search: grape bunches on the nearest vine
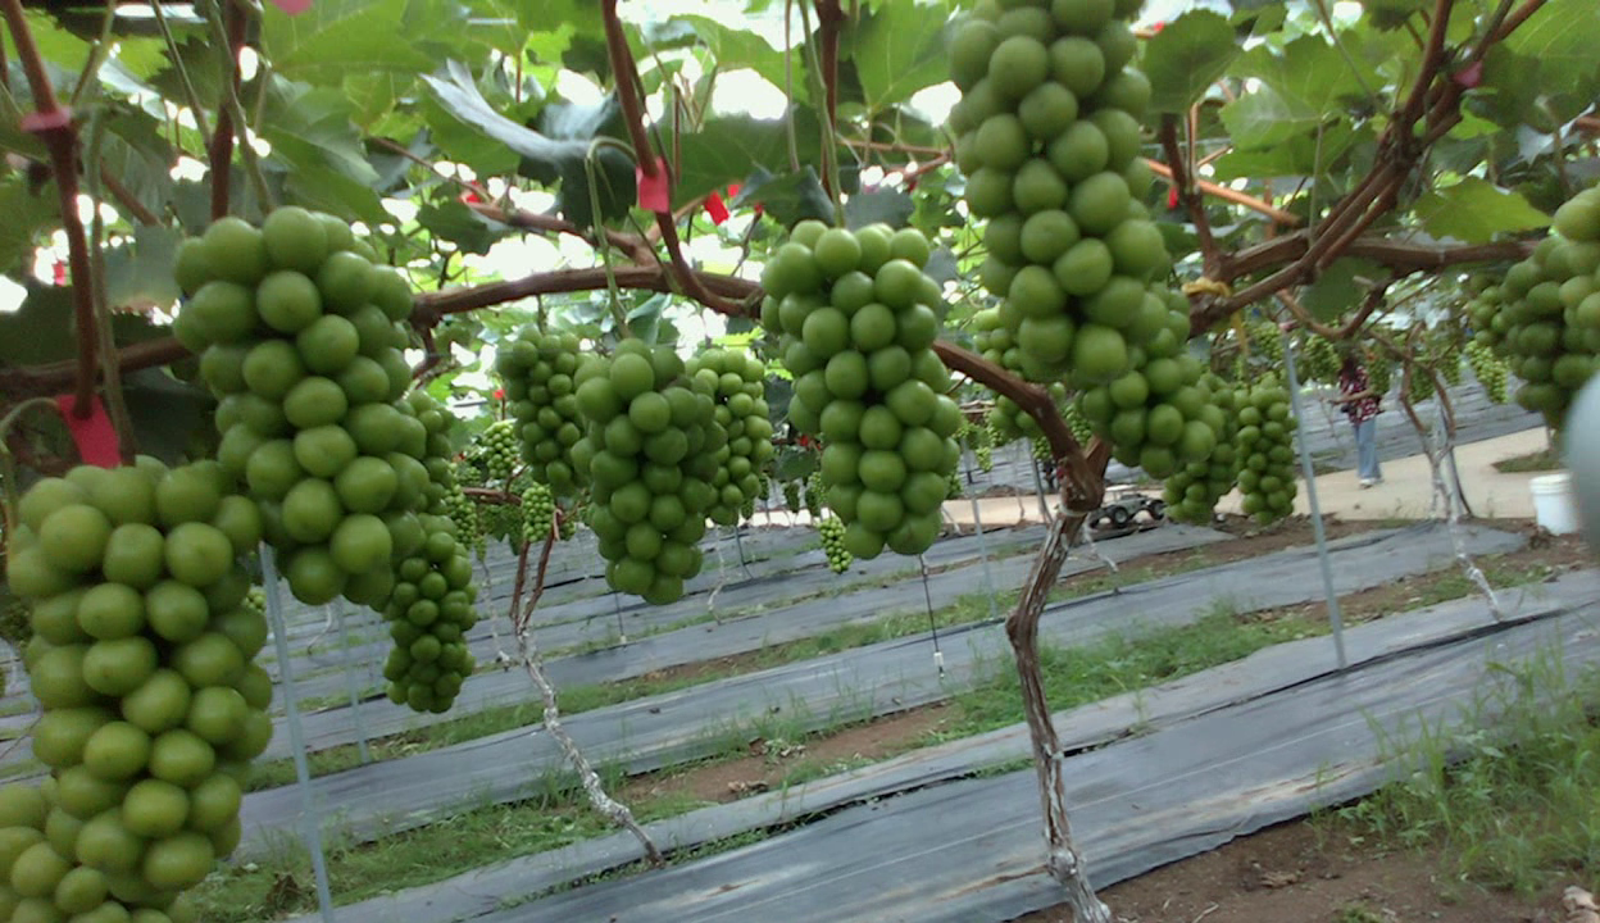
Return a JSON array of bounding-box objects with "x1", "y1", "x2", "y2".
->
[
  {"x1": 1500, "y1": 235, "x2": 1597, "y2": 410},
  {"x1": 759, "y1": 220, "x2": 962, "y2": 561},
  {"x1": 1, "y1": 779, "x2": 199, "y2": 922},
  {"x1": 169, "y1": 208, "x2": 428, "y2": 606},
  {"x1": 947, "y1": 0, "x2": 1172, "y2": 385},
  {"x1": 1553, "y1": 183, "x2": 1599, "y2": 332},
  {"x1": 1072, "y1": 290, "x2": 1223, "y2": 479},
  {"x1": 368, "y1": 514, "x2": 476, "y2": 715},
  {"x1": 573, "y1": 338, "x2": 727, "y2": 605},
  {"x1": 5, "y1": 451, "x2": 273, "y2": 897},
  {"x1": 495, "y1": 326, "x2": 594, "y2": 500}
]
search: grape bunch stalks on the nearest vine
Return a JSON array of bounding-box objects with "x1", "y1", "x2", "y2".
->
[
  {"x1": 585, "y1": 137, "x2": 637, "y2": 341},
  {"x1": 67, "y1": 105, "x2": 136, "y2": 468},
  {"x1": 194, "y1": 0, "x2": 274, "y2": 219},
  {"x1": 1553, "y1": 131, "x2": 1572, "y2": 204},
  {"x1": 536, "y1": 294, "x2": 547, "y2": 337},
  {"x1": 796, "y1": 0, "x2": 844, "y2": 227}
]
